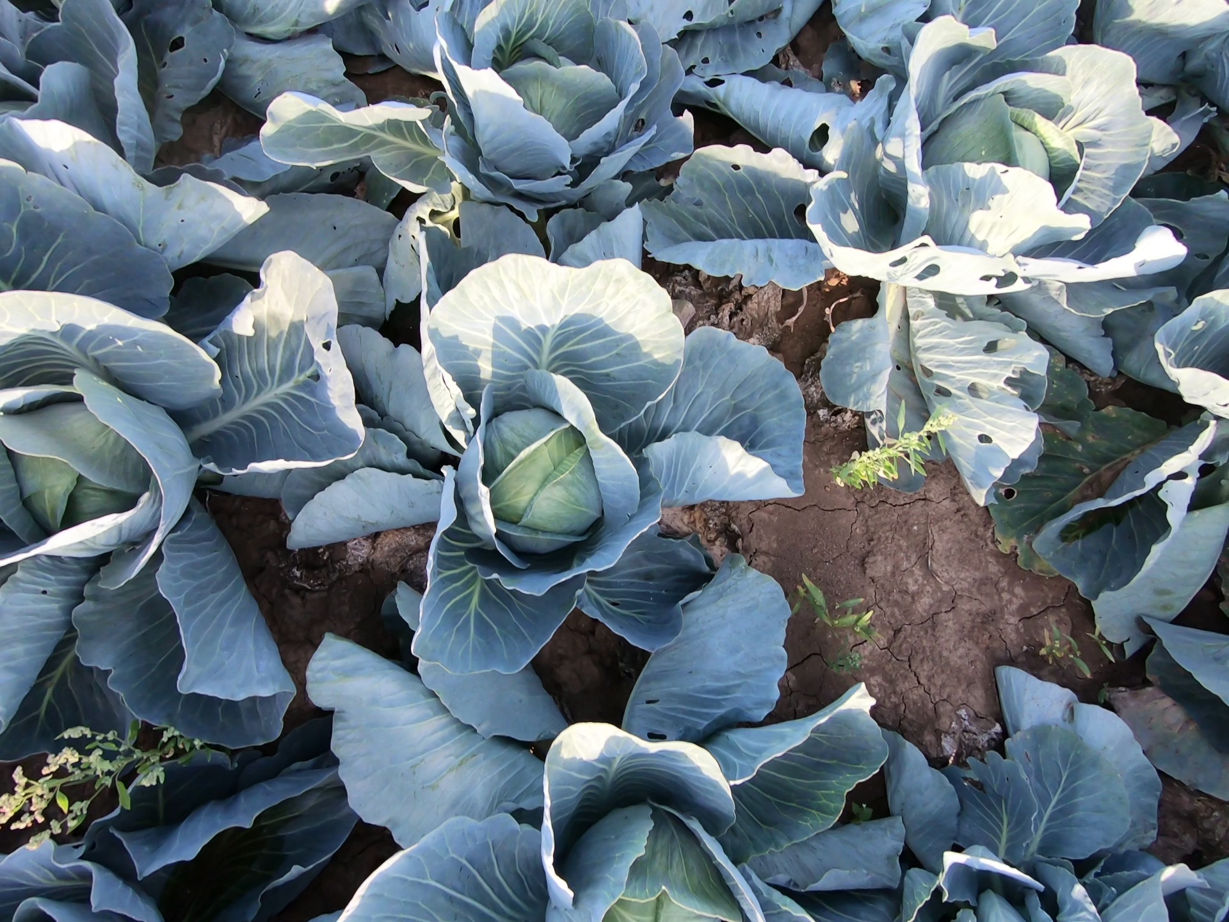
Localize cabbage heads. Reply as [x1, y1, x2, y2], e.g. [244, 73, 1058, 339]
[462, 405, 613, 549]
[492, 52, 586, 159]
[564, 810, 745, 920]
[923, 109, 1052, 237]
[13, 398, 159, 546]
